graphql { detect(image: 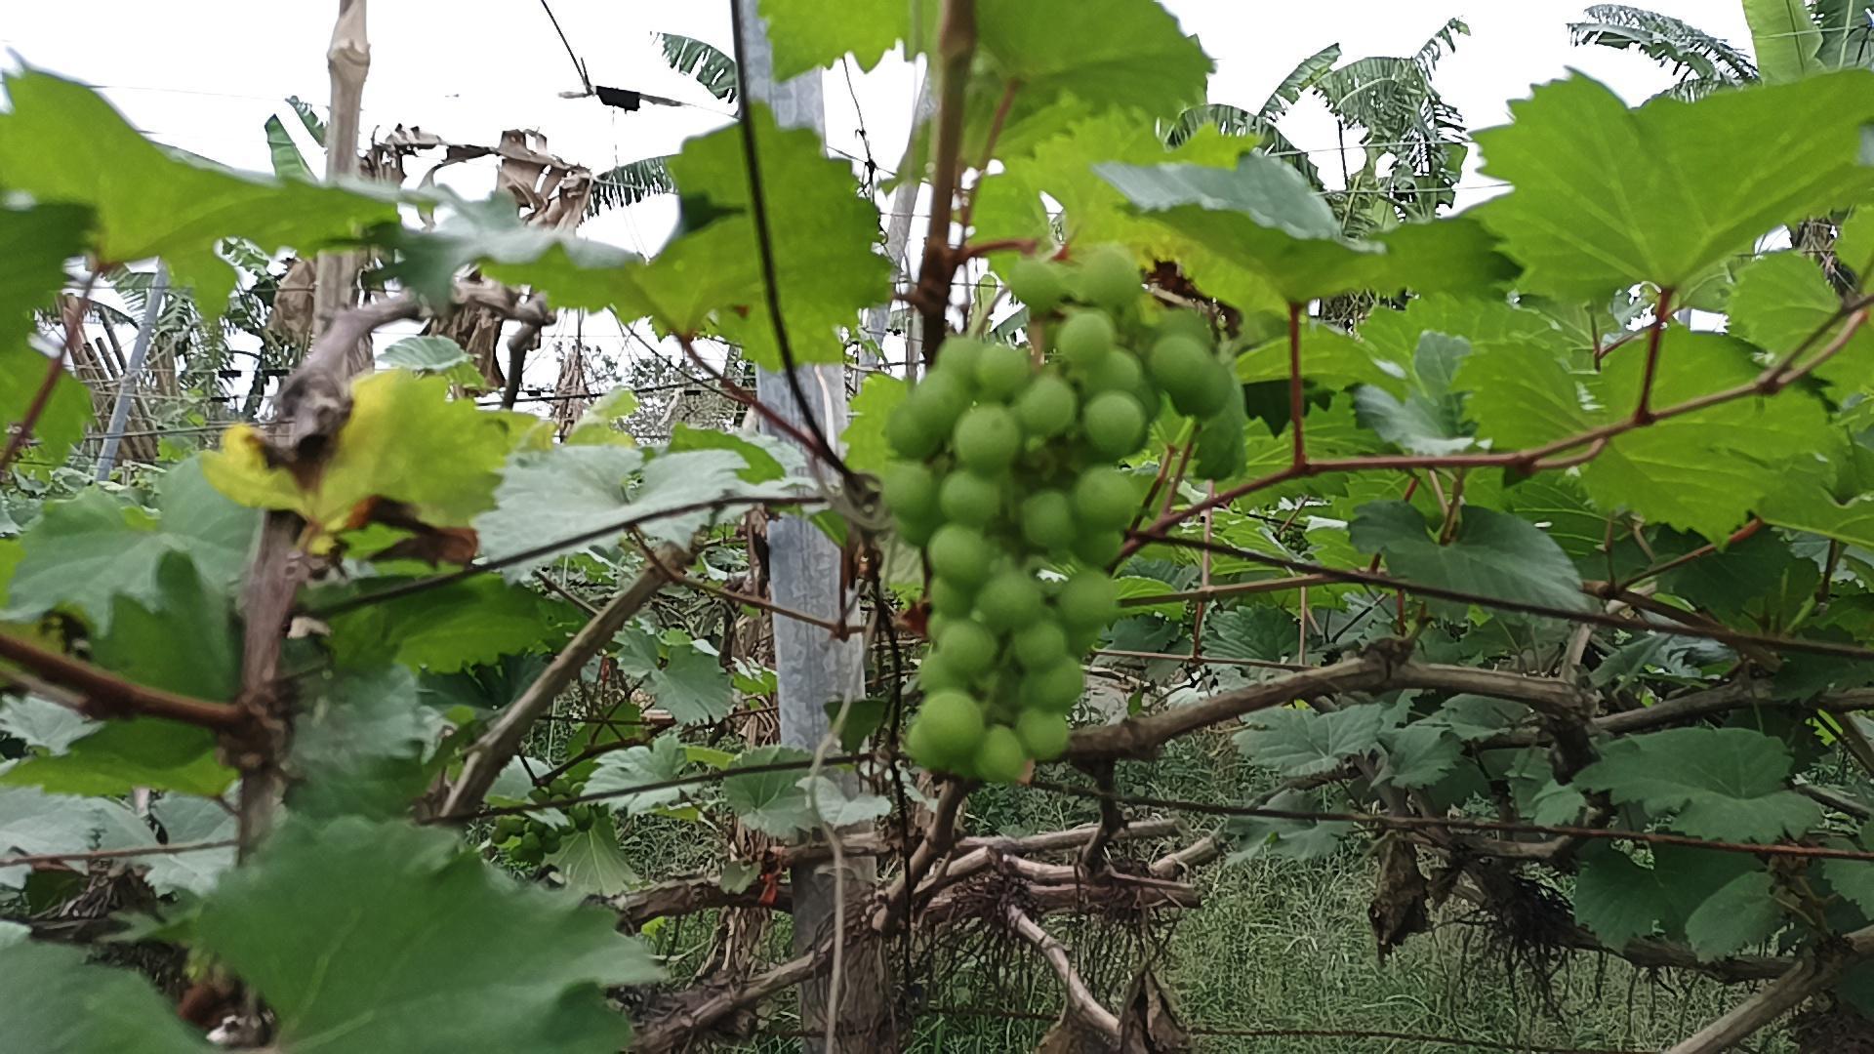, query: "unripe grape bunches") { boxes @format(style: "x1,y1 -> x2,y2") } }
492,778 -> 608,863
882,245 -> 1235,781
